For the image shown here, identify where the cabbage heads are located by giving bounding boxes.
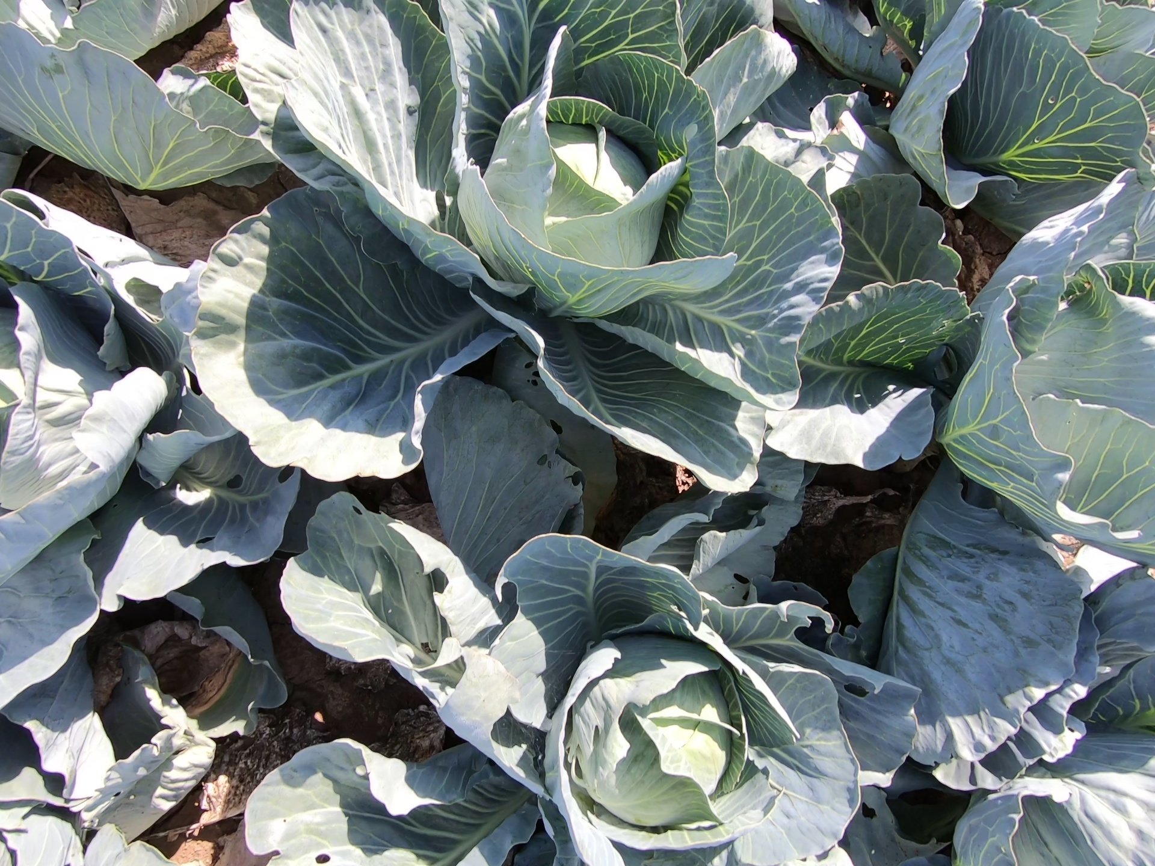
[2,309,86,488]
[493,121,649,285]
[584,640,737,824]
